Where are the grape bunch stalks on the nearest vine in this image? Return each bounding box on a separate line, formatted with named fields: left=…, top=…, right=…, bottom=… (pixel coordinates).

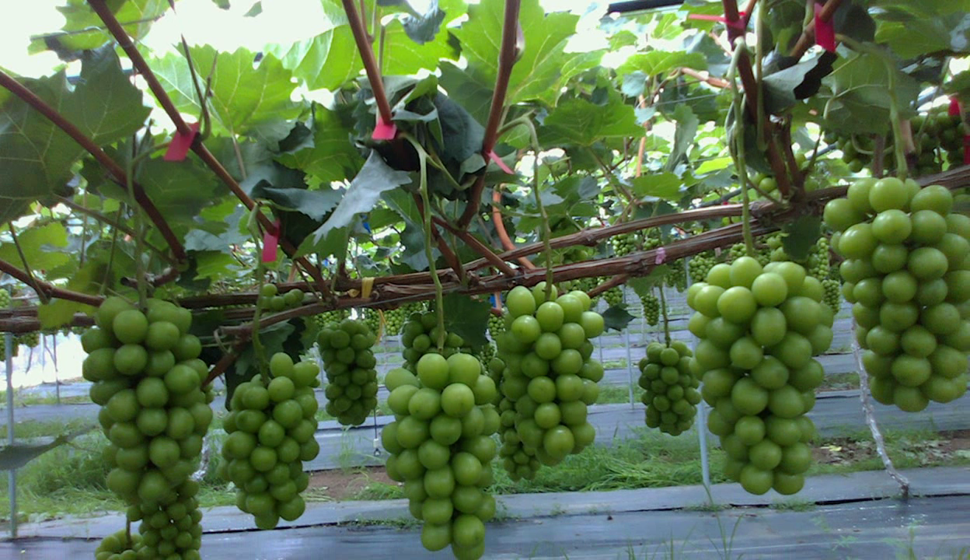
left=404, top=135, right=444, bottom=352
left=727, top=40, right=756, bottom=255
left=127, top=142, right=169, bottom=311
left=837, top=35, right=909, bottom=177
left=246, top=205, right=270, bottom=384
left=502, top=117, right=553, bottom=299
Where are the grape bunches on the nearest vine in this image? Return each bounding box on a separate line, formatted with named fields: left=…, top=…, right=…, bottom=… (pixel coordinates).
left=822, top=178, right=969, bottom=413
left=686, top=256, right=834, bottom=495
left=495, top=282, right=604, bottom=467
left=222, top=353, right=320, bottom=530
left=80, top=296, right=213, bottom=504
left=382, top=354, right=500, bottom=559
